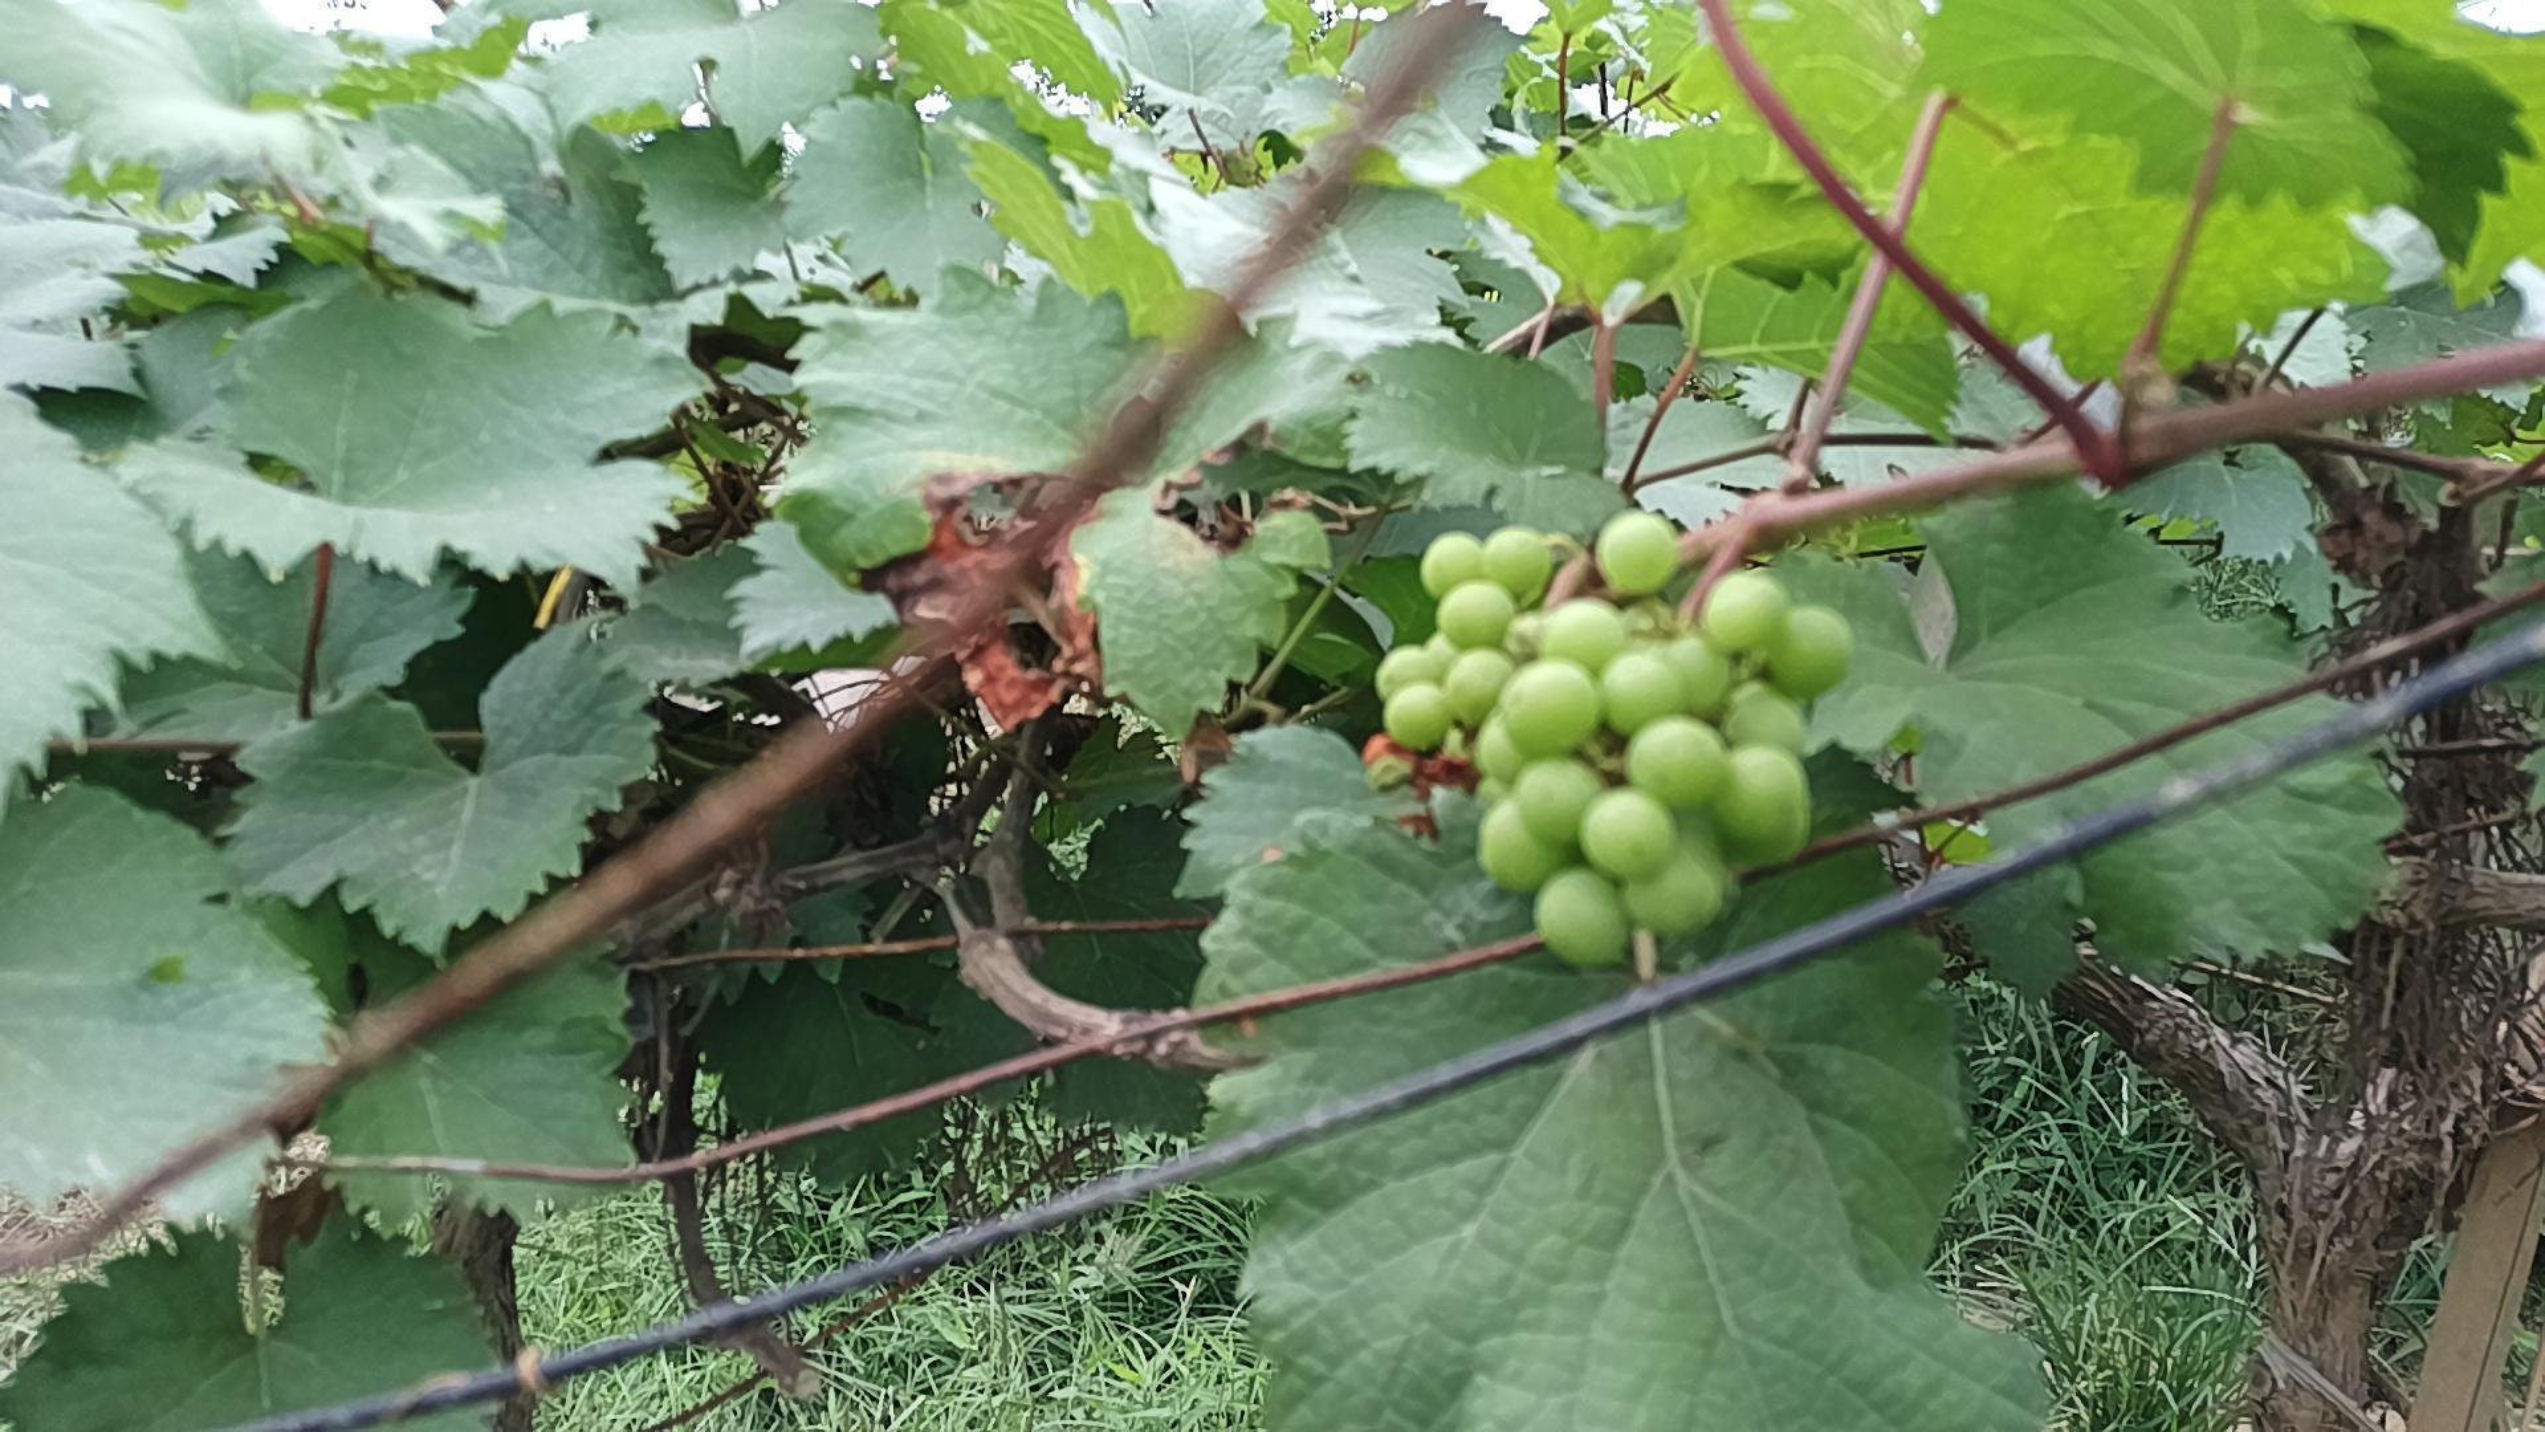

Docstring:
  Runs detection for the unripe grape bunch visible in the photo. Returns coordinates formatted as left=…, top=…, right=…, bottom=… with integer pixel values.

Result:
left=1367, top=510, right=1850, bottom=980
